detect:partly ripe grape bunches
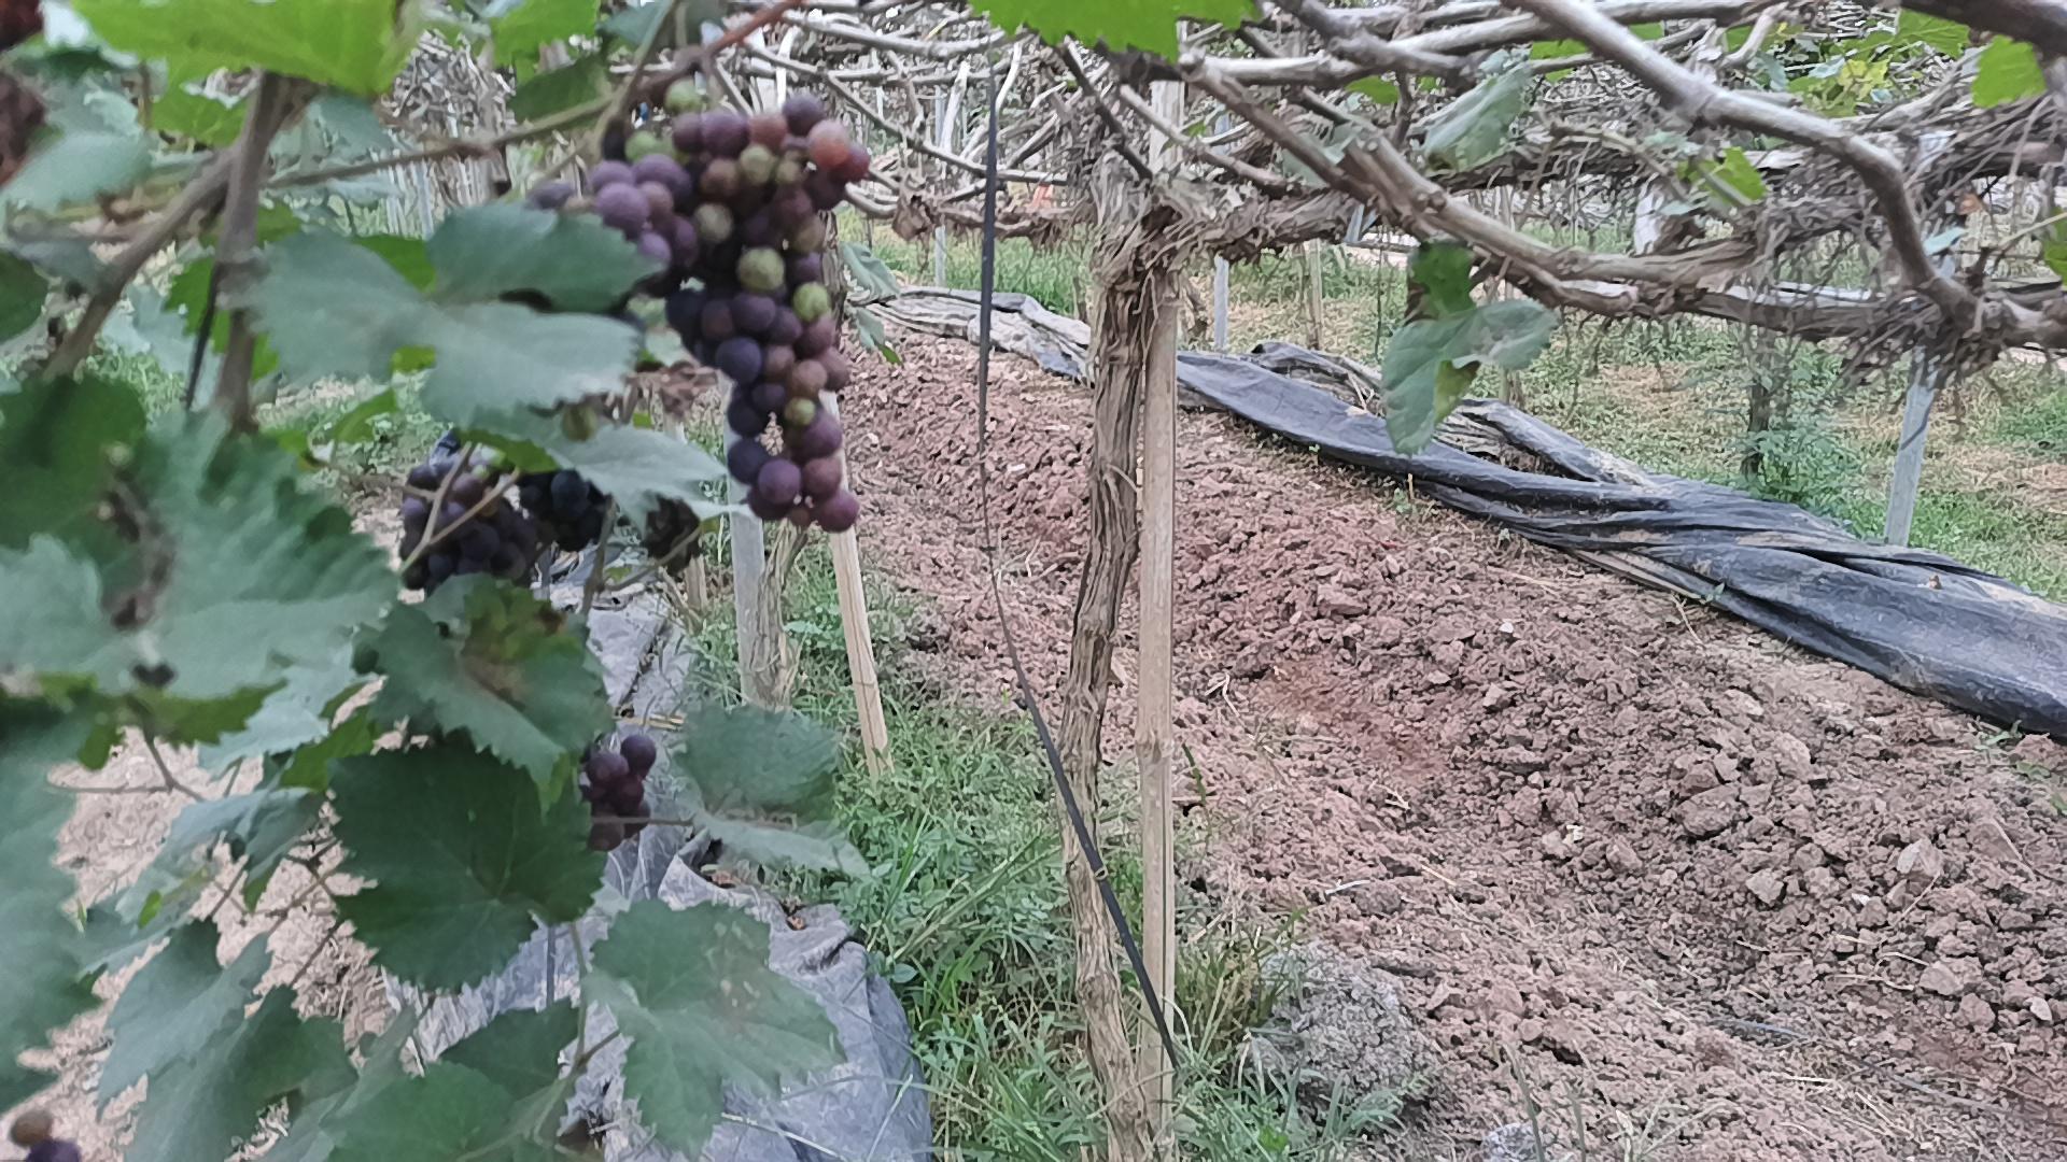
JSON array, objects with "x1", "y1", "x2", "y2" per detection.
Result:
[
  {"x1": 529, "y1": 74, "x2": 870, "y2": 532},
  {"x1": 396, "y1": 441, "x2": 610, "y2": 597}
]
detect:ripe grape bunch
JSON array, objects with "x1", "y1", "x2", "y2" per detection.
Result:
[{"x1": 580, "y1": 727, "x2": 661, "y2": 851}]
